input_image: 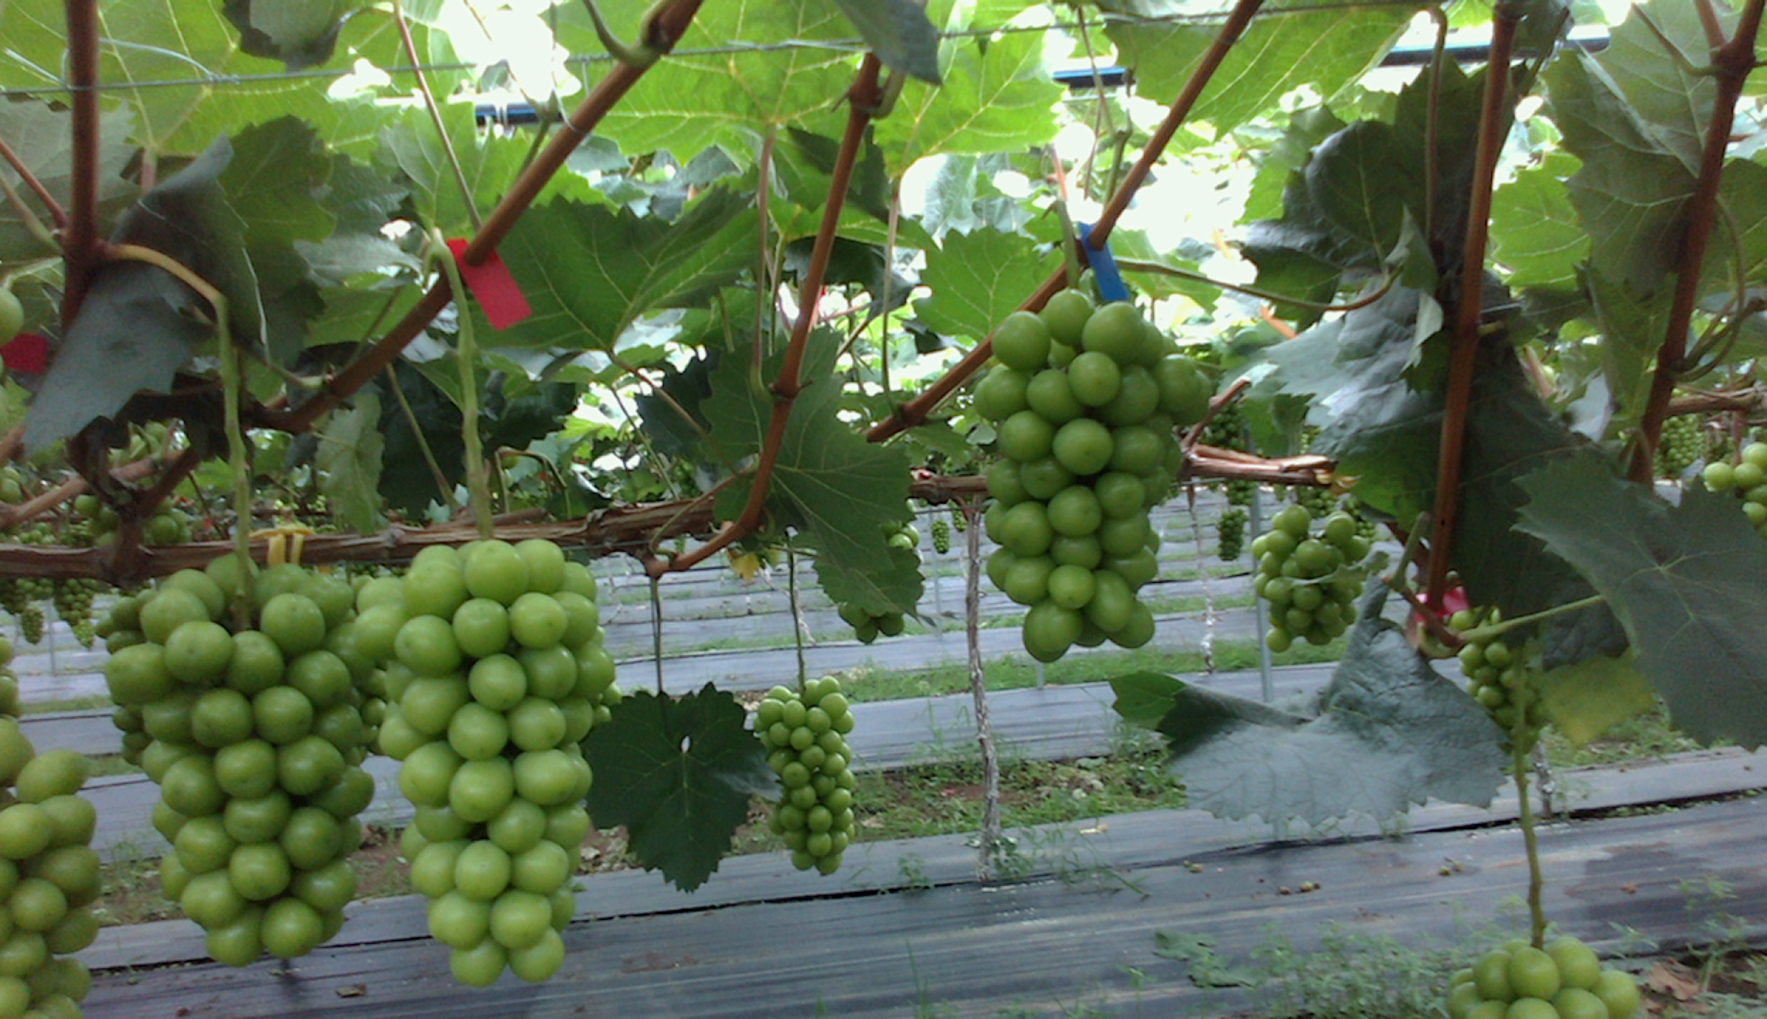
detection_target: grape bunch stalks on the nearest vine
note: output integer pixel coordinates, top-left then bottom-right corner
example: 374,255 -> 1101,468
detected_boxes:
1055,202 -> 1077,287
120,243 -> 253,630
421,241 -> 493,539
1511,652 -> 1543,947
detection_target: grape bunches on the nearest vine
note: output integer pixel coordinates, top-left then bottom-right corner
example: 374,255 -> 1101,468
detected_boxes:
0,718 -> 103,1018
354,539 -> 614,986
973,289 -> 1213,662
103,556 -> 375,968
1446,934 -> 1644,1018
